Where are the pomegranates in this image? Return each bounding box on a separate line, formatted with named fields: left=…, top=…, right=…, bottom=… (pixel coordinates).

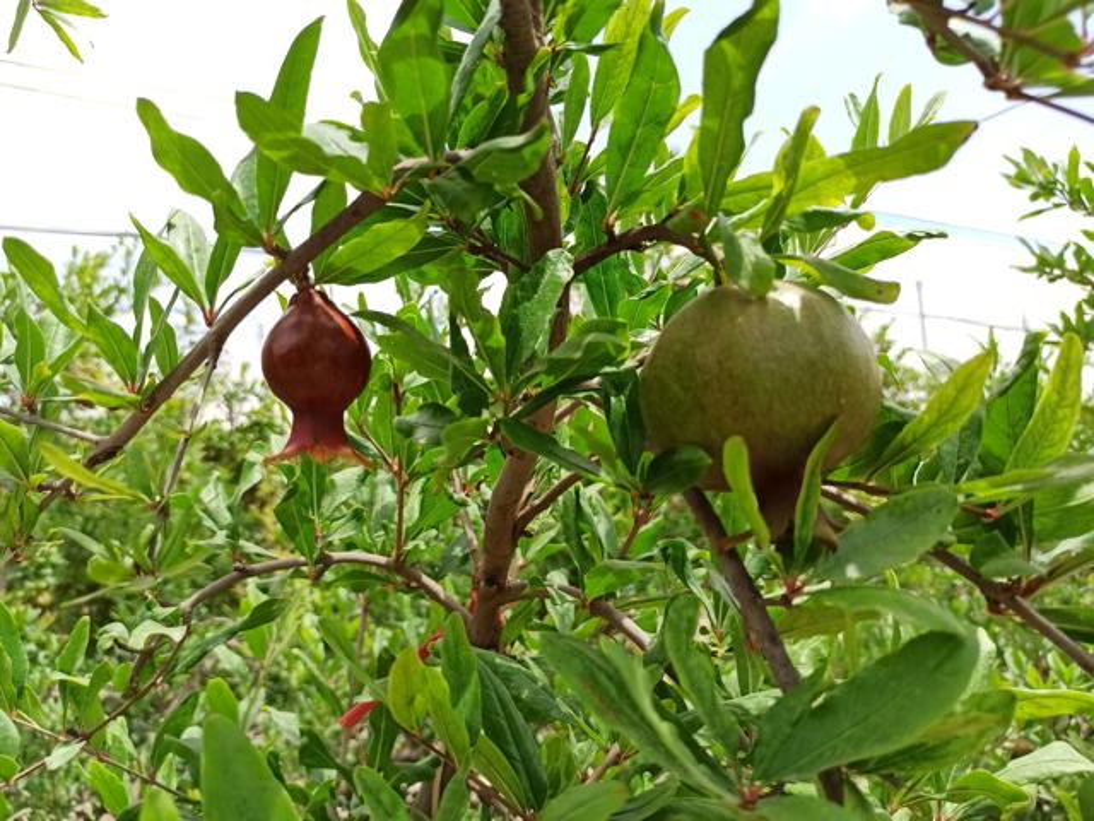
left=638, top=281, right=880, bottom=554
left=260, top=286, right=373, bottom=470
